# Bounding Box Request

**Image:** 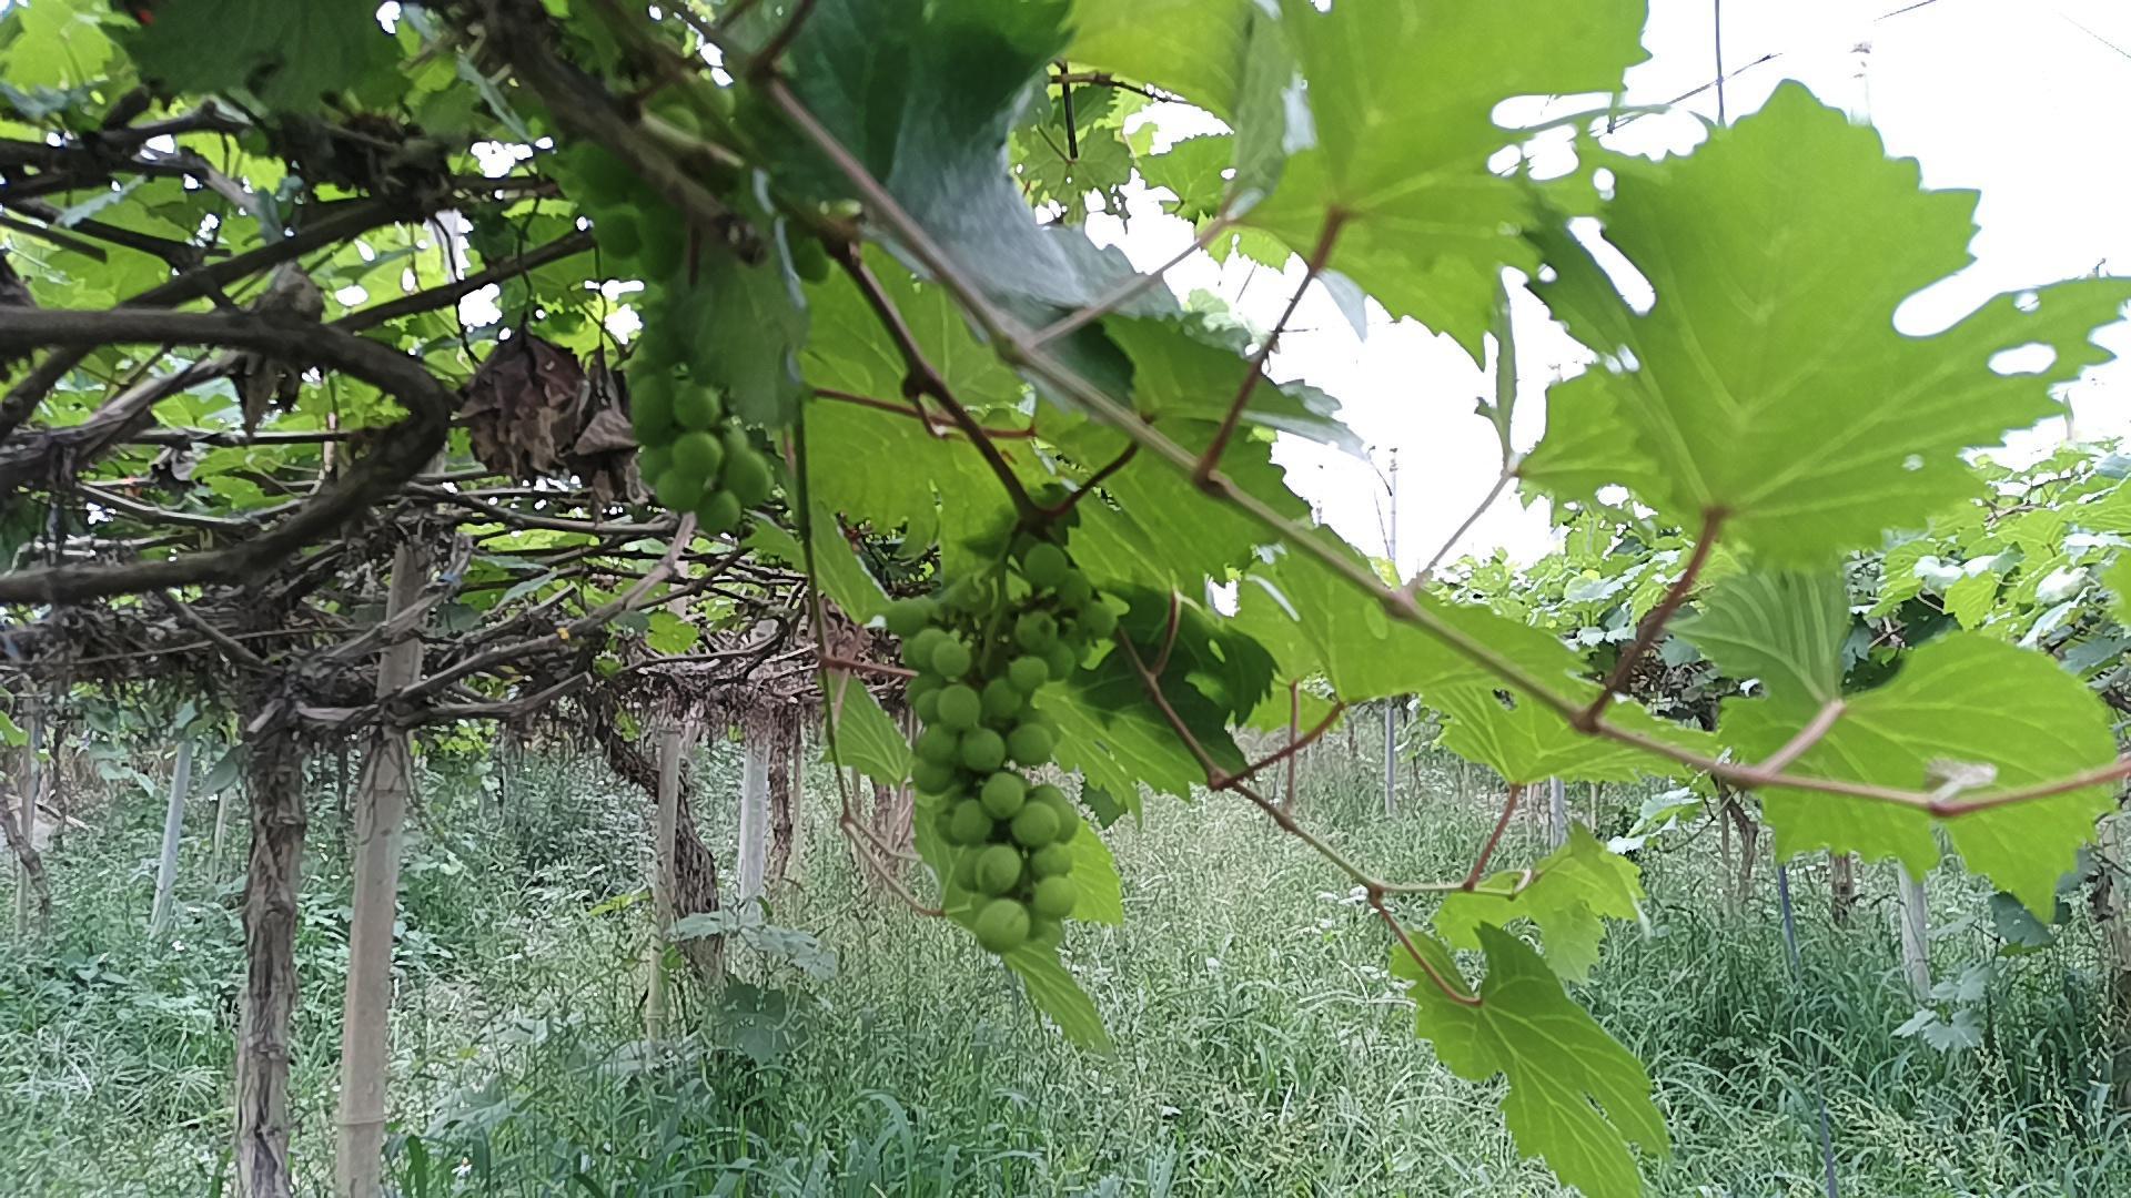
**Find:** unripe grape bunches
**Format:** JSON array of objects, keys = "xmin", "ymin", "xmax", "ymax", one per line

[
  {"xmin": 569, "ymin": 75, "xmax": 827, "ymax": 532},
  {"xmin": 883, "ymin": 504, "xmax": 1115, "ymax": 953}
]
